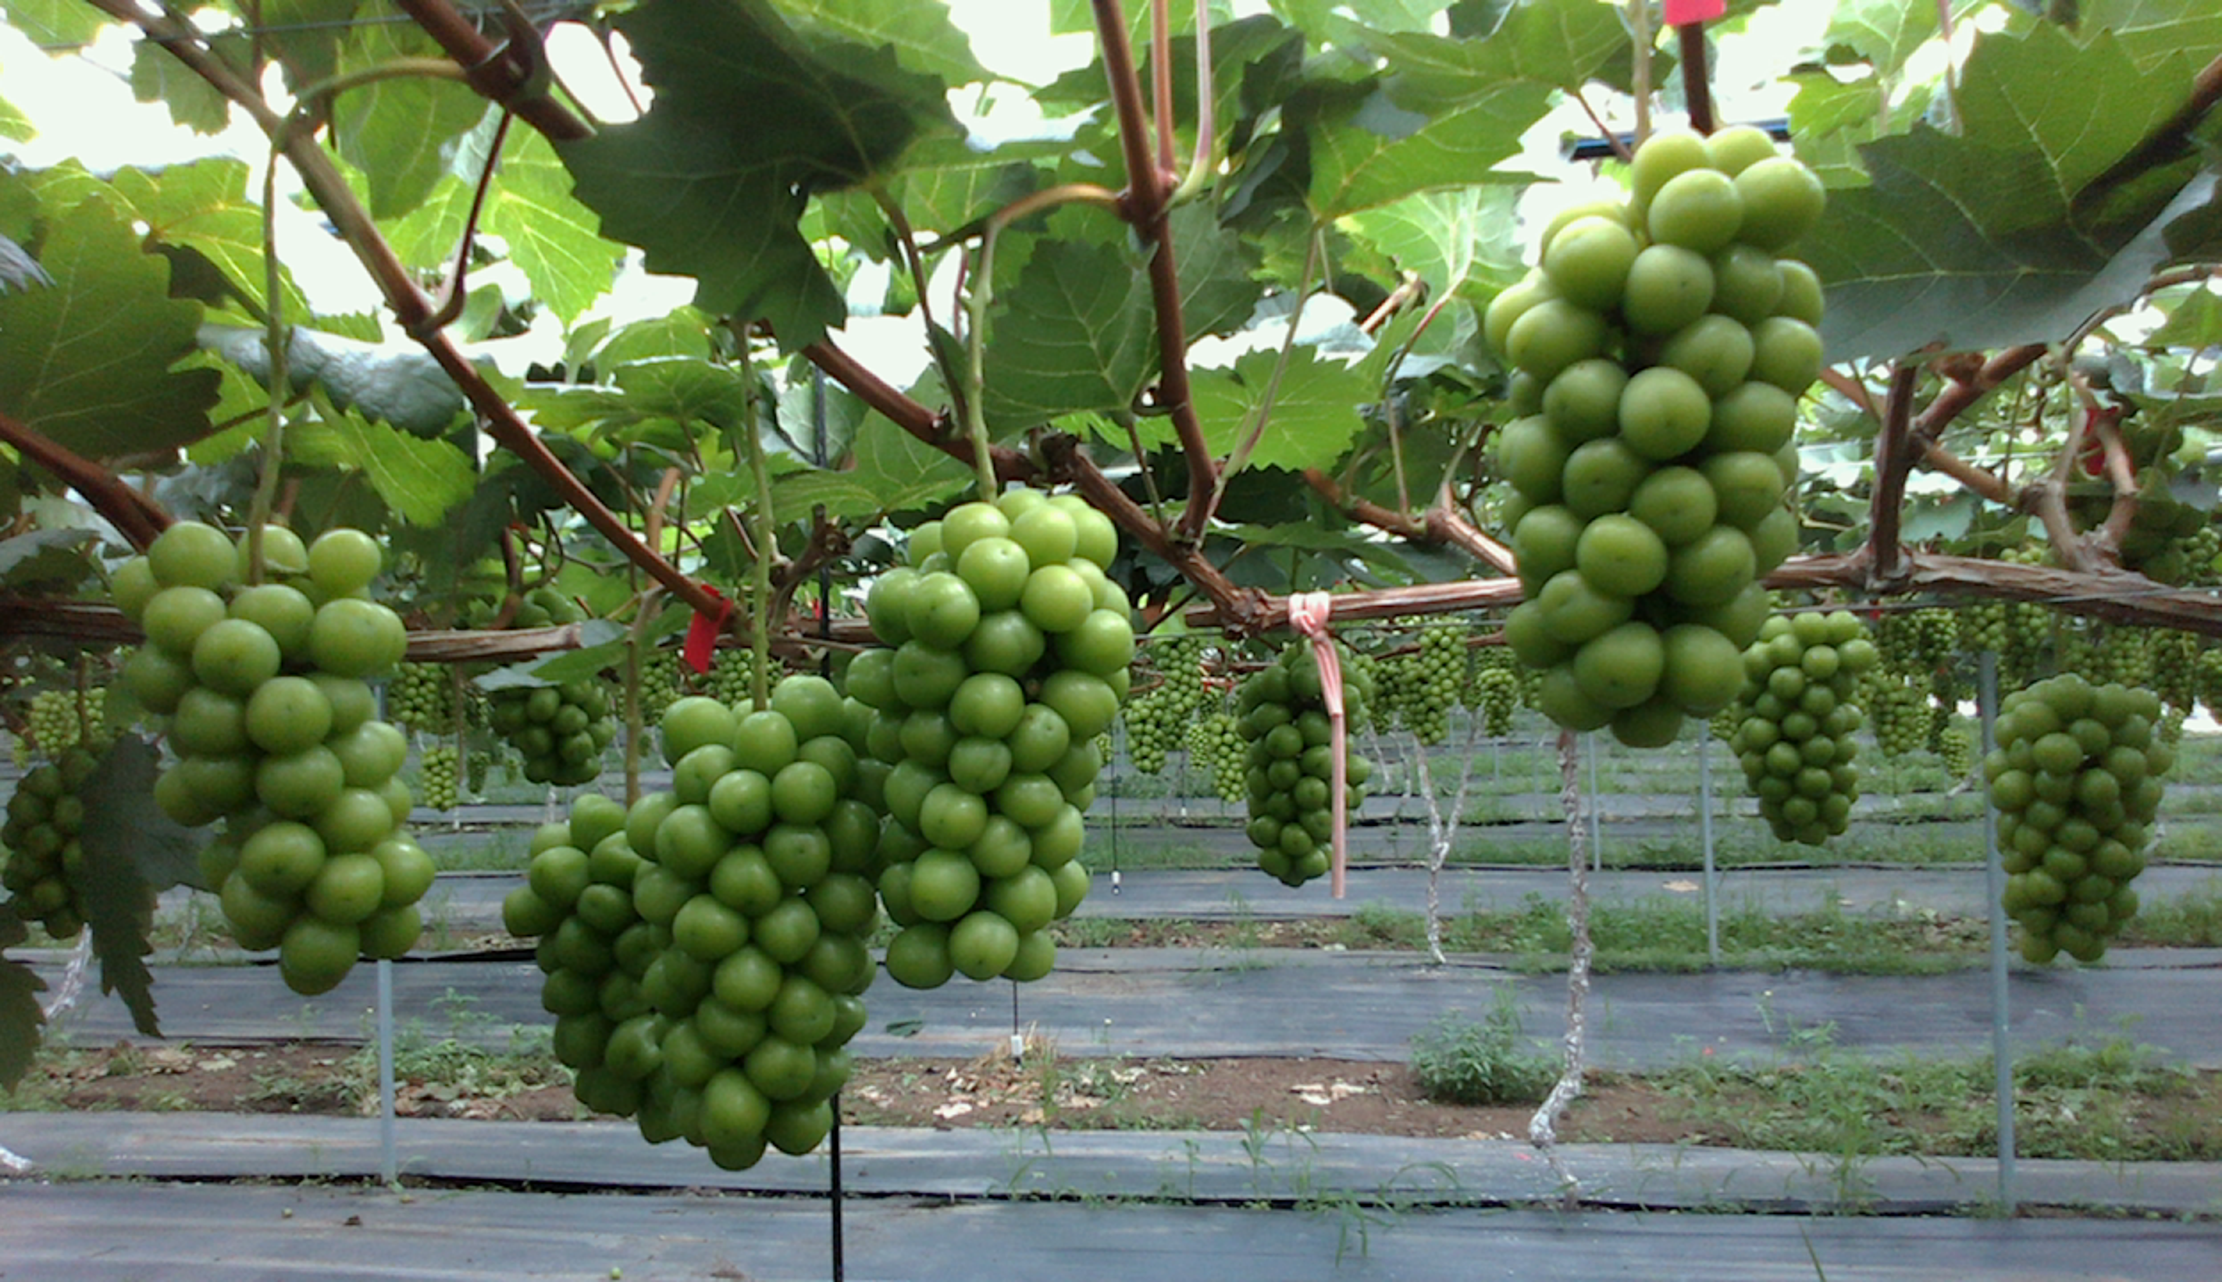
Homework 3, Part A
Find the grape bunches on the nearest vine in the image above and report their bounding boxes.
[1483,123,1825,748]
[623,675,888,1172]
[846,488,1132,990]
[502,792,701,1148]
[110,520,436,994]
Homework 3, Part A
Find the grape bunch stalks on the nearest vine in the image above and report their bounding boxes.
[956,183,1134,502]
[244,55,470,582]
[728,315,773,710]
[1631,2,1650,153]
[625,586,673,805]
